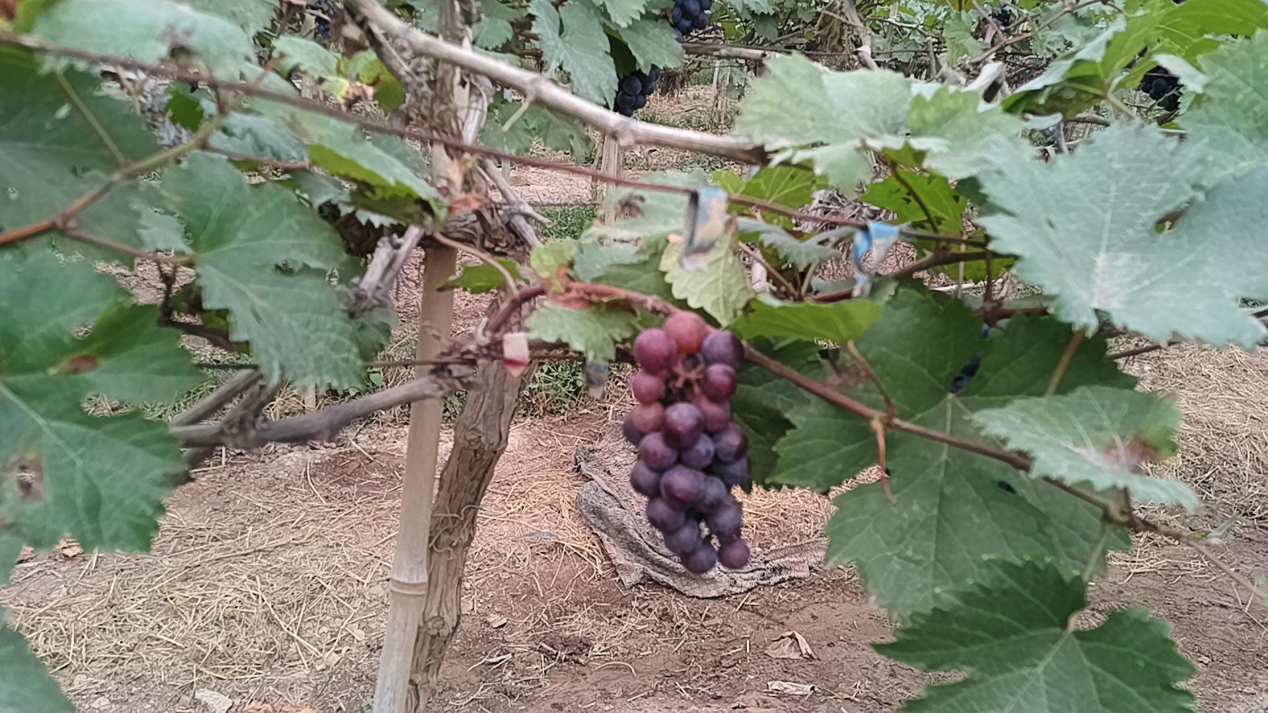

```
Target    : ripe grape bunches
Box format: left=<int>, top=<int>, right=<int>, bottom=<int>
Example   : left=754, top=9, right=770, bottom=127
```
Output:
left=623, top=309, right=750, bottom=572
left=602, top=0, right=714, bottom=117
left=990, top=7, right=1014, bottom=27
left=1139, top=65, right=1183, bottom=112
